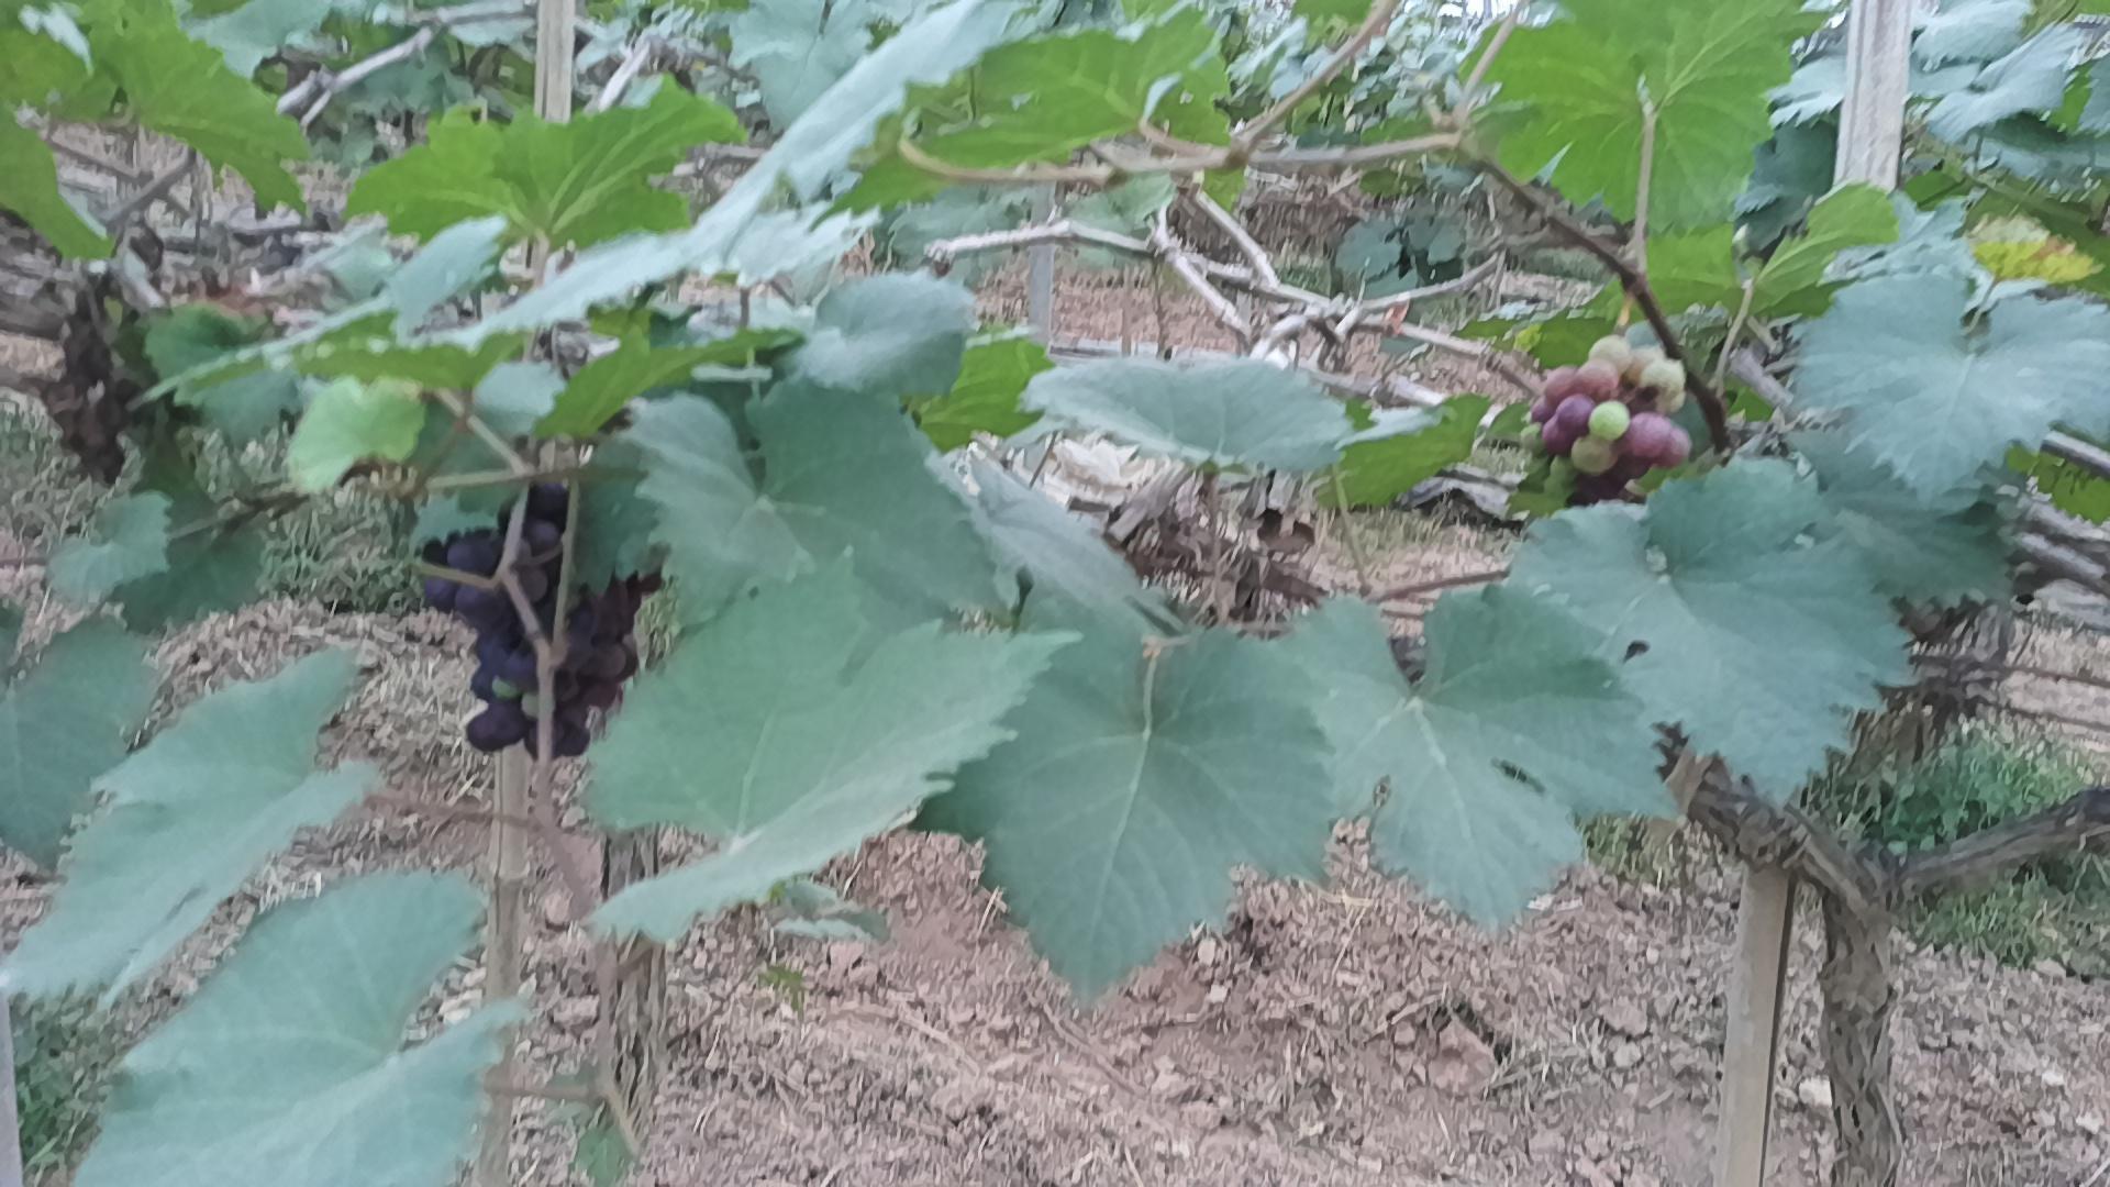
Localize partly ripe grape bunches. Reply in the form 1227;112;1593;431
1529;321;1690;504
422;482;659;758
